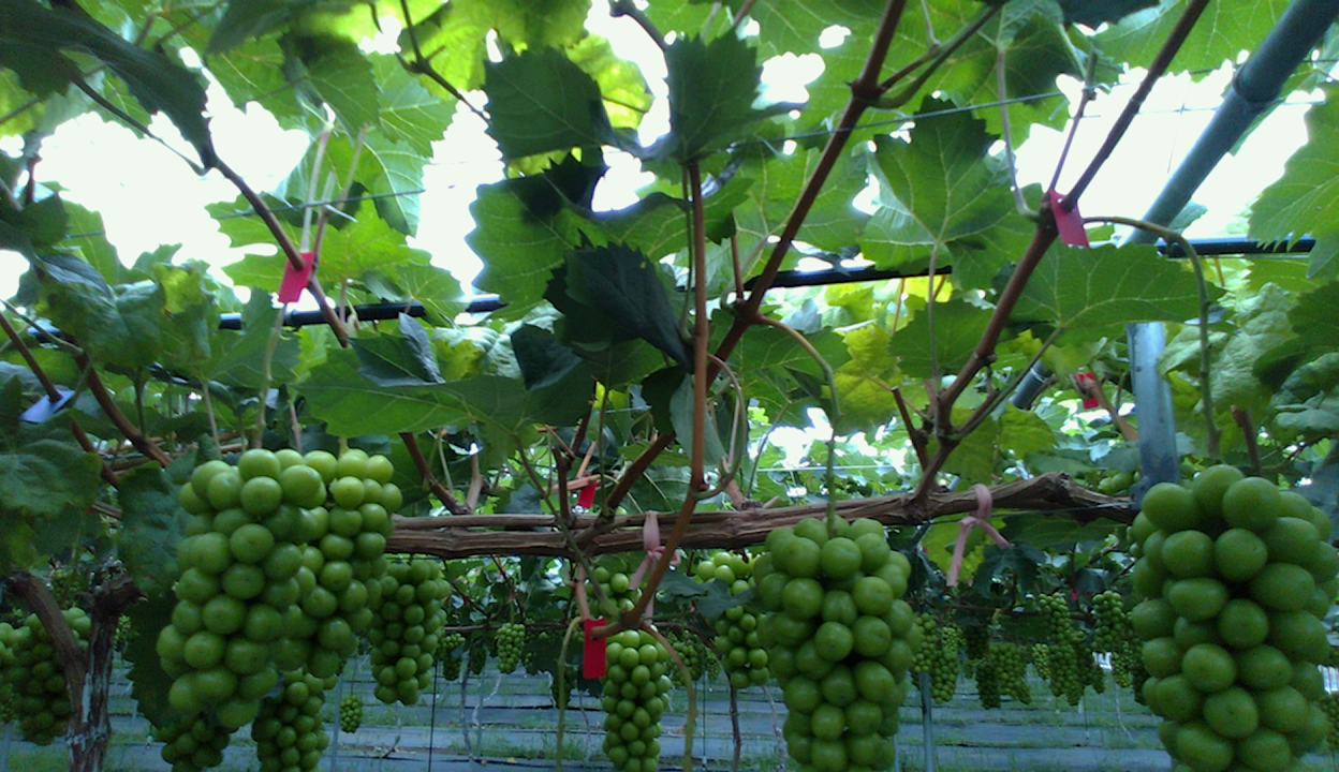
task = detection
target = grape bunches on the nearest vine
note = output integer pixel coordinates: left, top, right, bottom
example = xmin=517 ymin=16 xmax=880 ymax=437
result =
xmin=275 ymin=448 xmax=403 ymax=679
xmin=156 ymin=449 xmax=326 ymax=727
xmin=753 ymin=515 xmax=922 ymax=771
xmin=1131 ymin=463 xmax=1338 ymax=771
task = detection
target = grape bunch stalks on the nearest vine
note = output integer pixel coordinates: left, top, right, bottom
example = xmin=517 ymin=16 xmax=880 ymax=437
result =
xmin=251 ymin=305 xmax=288 ymax=449
xmin=753 ymin=313 xmax=842 ymax=538
xmin=1081 ymin=214 xmax=1224 ymax=463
